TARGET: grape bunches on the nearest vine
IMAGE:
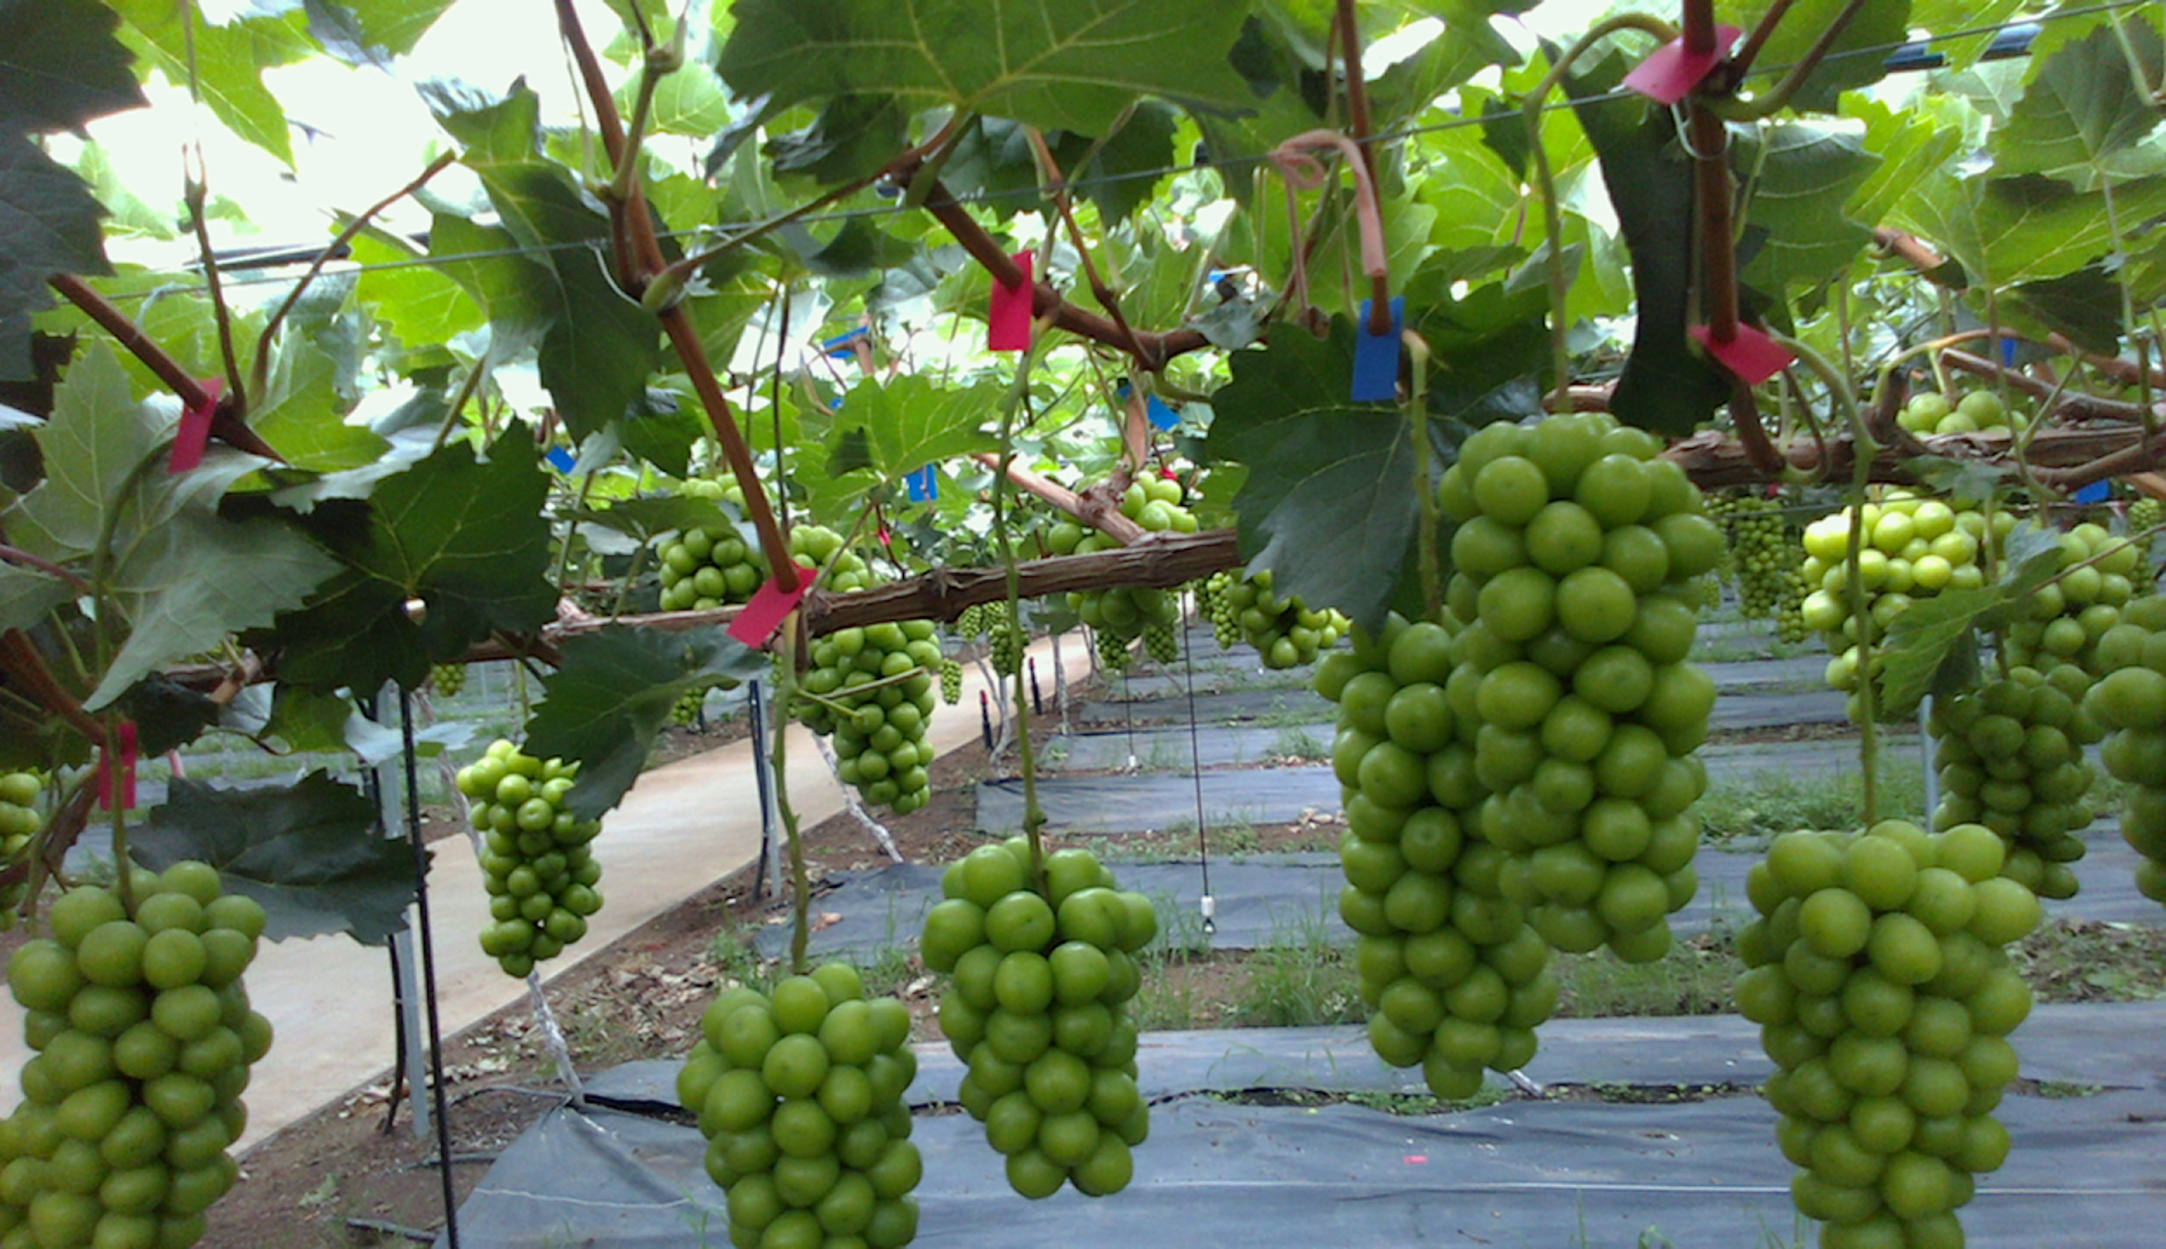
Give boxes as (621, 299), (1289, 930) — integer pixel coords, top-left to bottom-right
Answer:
(1314, 611), (1557, 1102)
(1442, 411), (1722, 965)
(0, 864), (272, 1247)
(1736, 821), (2043, 1247)
(916, 834), (1159, 1202)
(670, 961), (925, 1247)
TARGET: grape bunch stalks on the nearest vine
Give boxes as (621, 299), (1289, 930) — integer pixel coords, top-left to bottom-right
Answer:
(771, 623), (857, 970)
(92, 437), (177, 919)
(1522, 14), (1675, 409)
(991, 349), (1048, 899)
(1404, 330), (1442, 621)
(1793, 340), (1887, 824)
